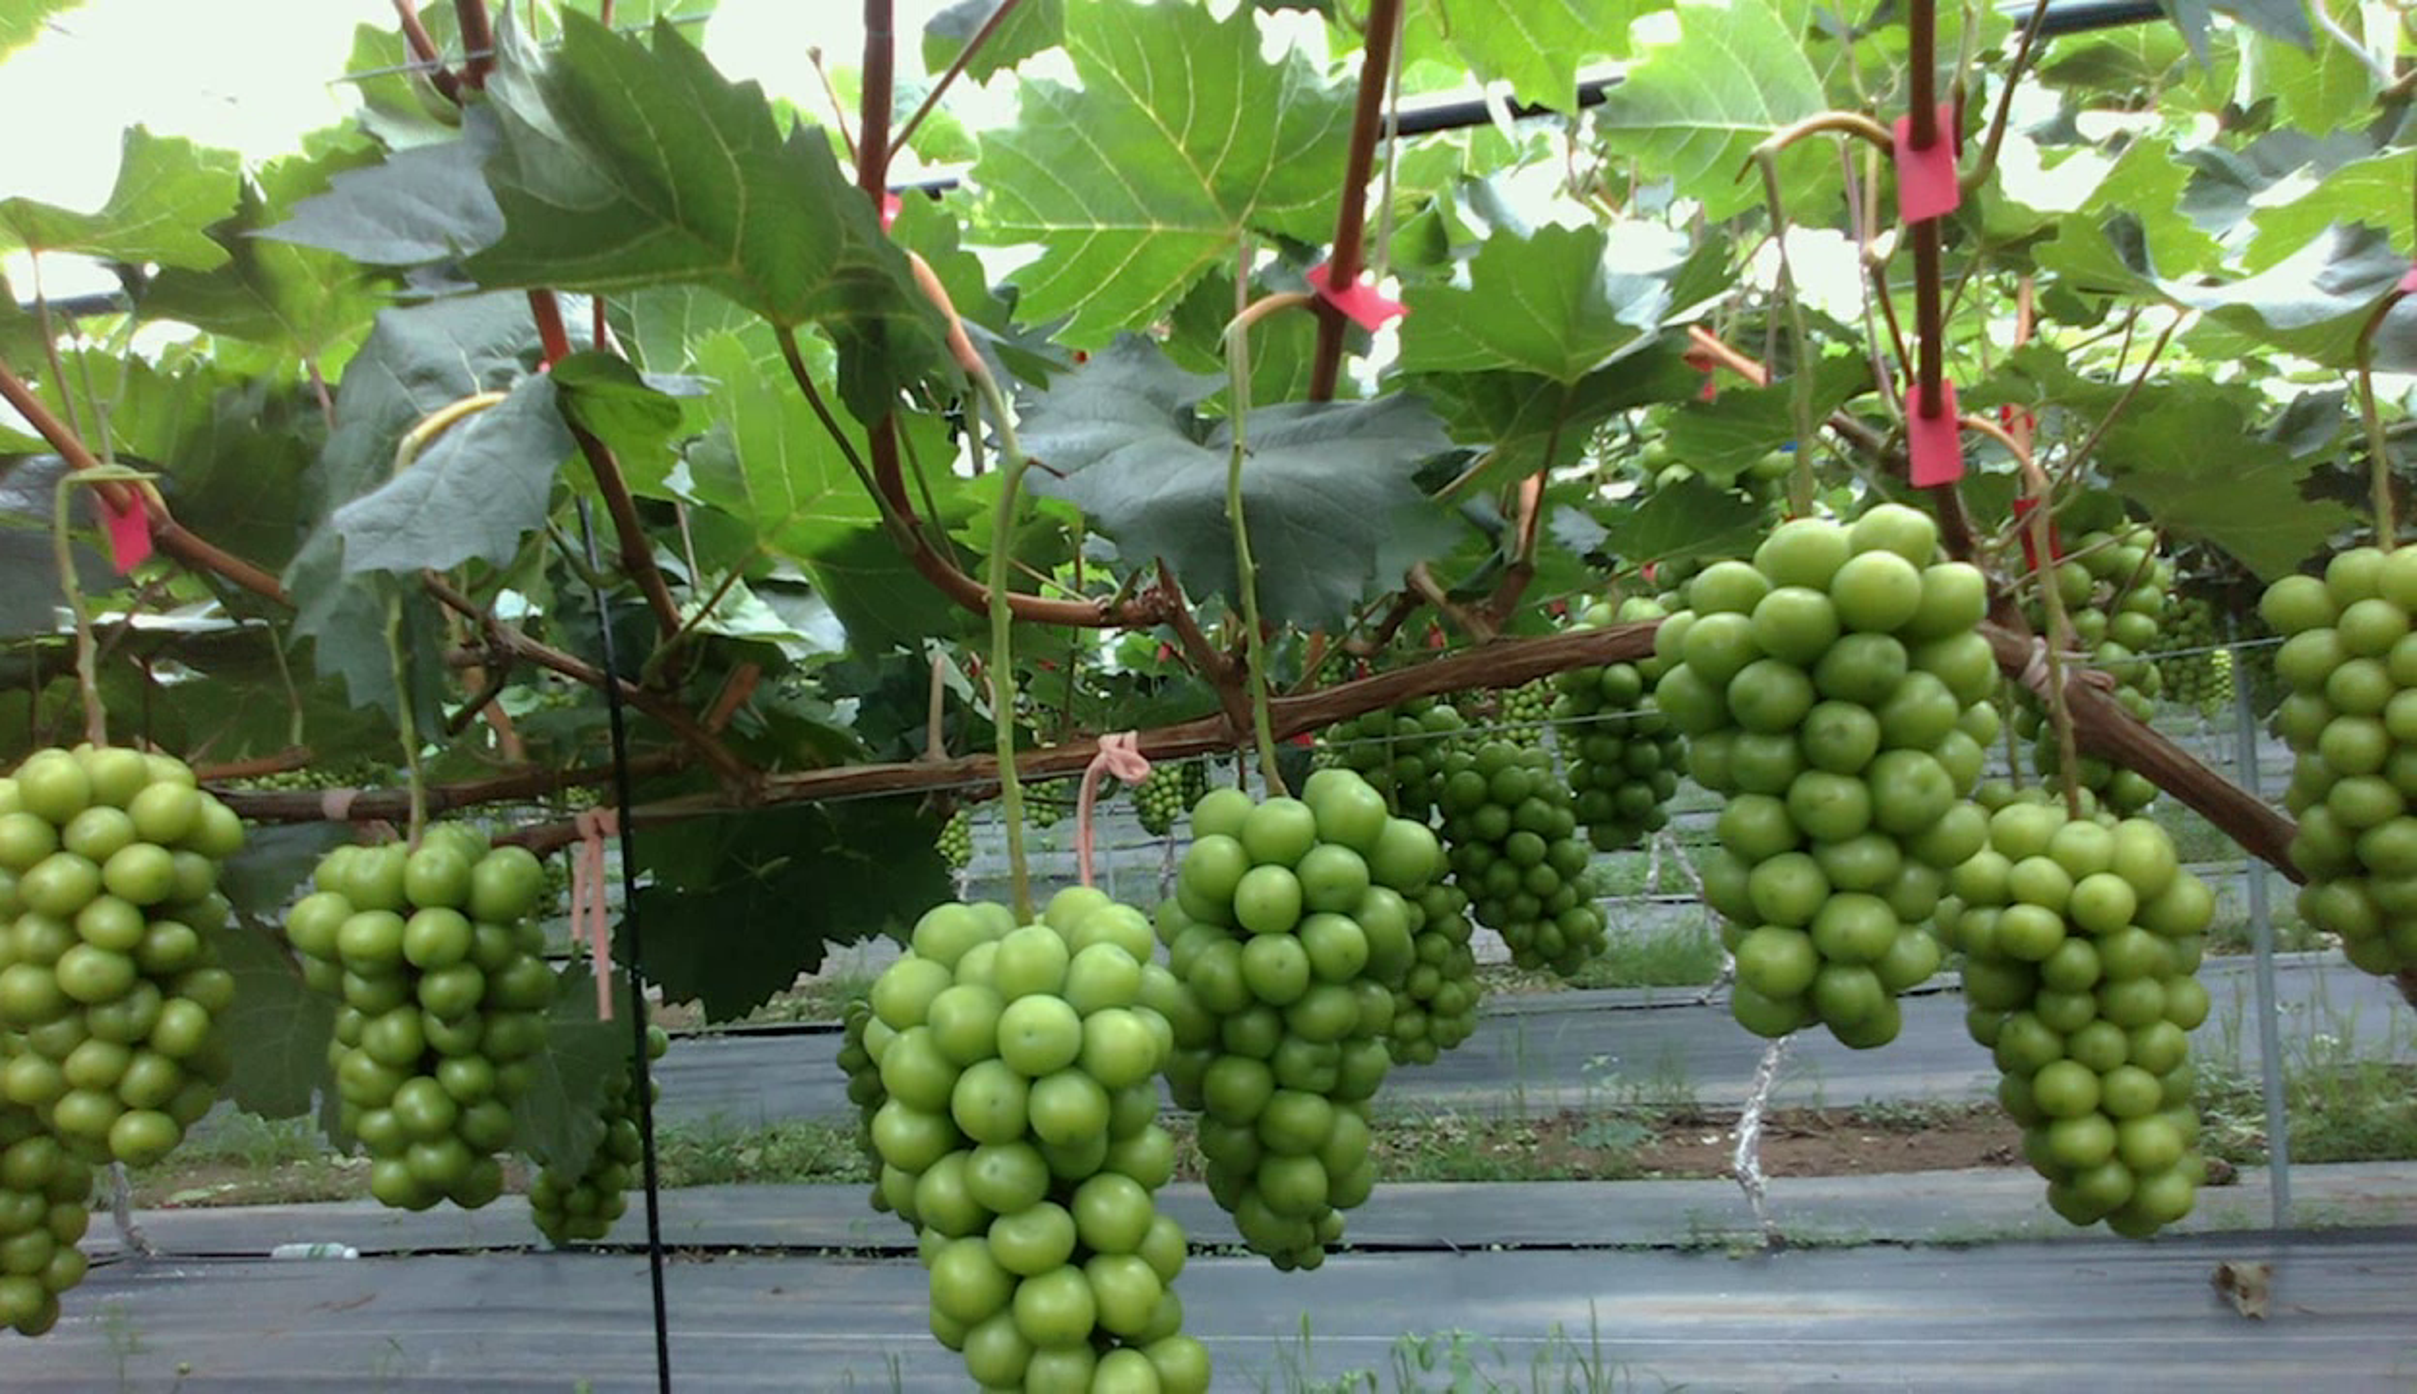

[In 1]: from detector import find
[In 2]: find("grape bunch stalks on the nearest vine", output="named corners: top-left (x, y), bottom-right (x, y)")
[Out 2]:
top-left (52, 465), bottom-right (170, 749)
top-left (372, 571), bottom-right (426, 854)
top-left (2355, 288), bottom-right (2407, 552)
top-left (1214, 290), bottom-right (1315, 796)
top-left (949, 329), bottom-right (1034, 927)
top-left (1960, 416), bottom-right (2078, 821)
top-left (1747, 108), bottom-right (1892, 521)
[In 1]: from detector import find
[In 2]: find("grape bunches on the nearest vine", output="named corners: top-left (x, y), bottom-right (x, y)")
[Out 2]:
top-left (2260, 542), bottom-right (2415, 976)
top-left (1652, 503), bottom-right (2001, 1051)
top-left (1931, 788), bottom-right (2218, 1239)
top-left (1156, 769), bottom-right (1439, 1274)
top-left (864, 887), bottom-right (1212, 1392)
top-left (0, 745), bottom-right (242, 1169)
top-left (285, 821), bottom-right (558, 1212)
